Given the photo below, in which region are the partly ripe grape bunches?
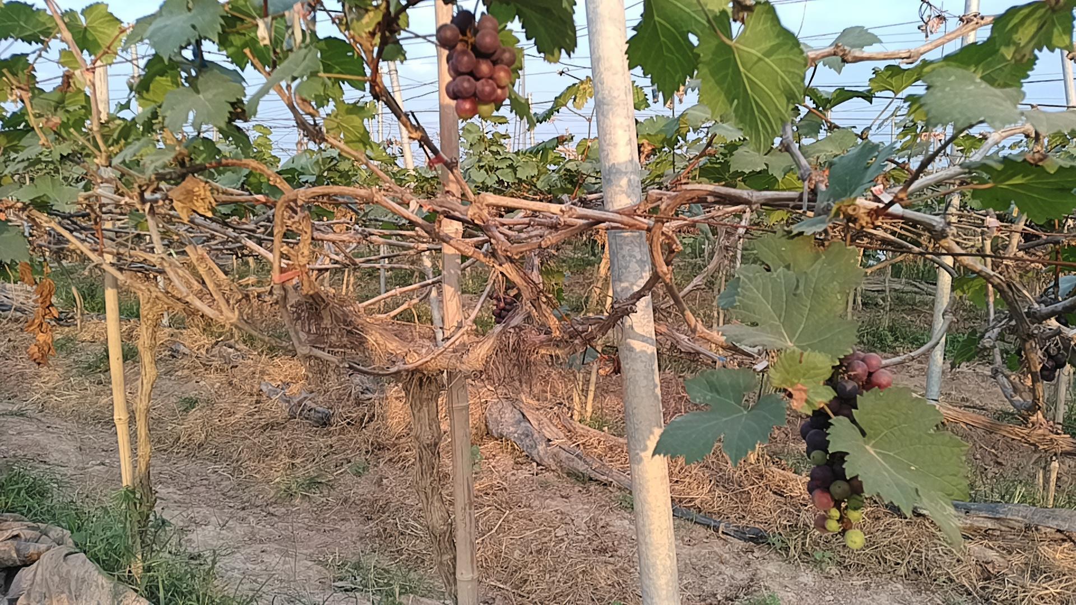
[799,350,891,550]
[435,10,517,119]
